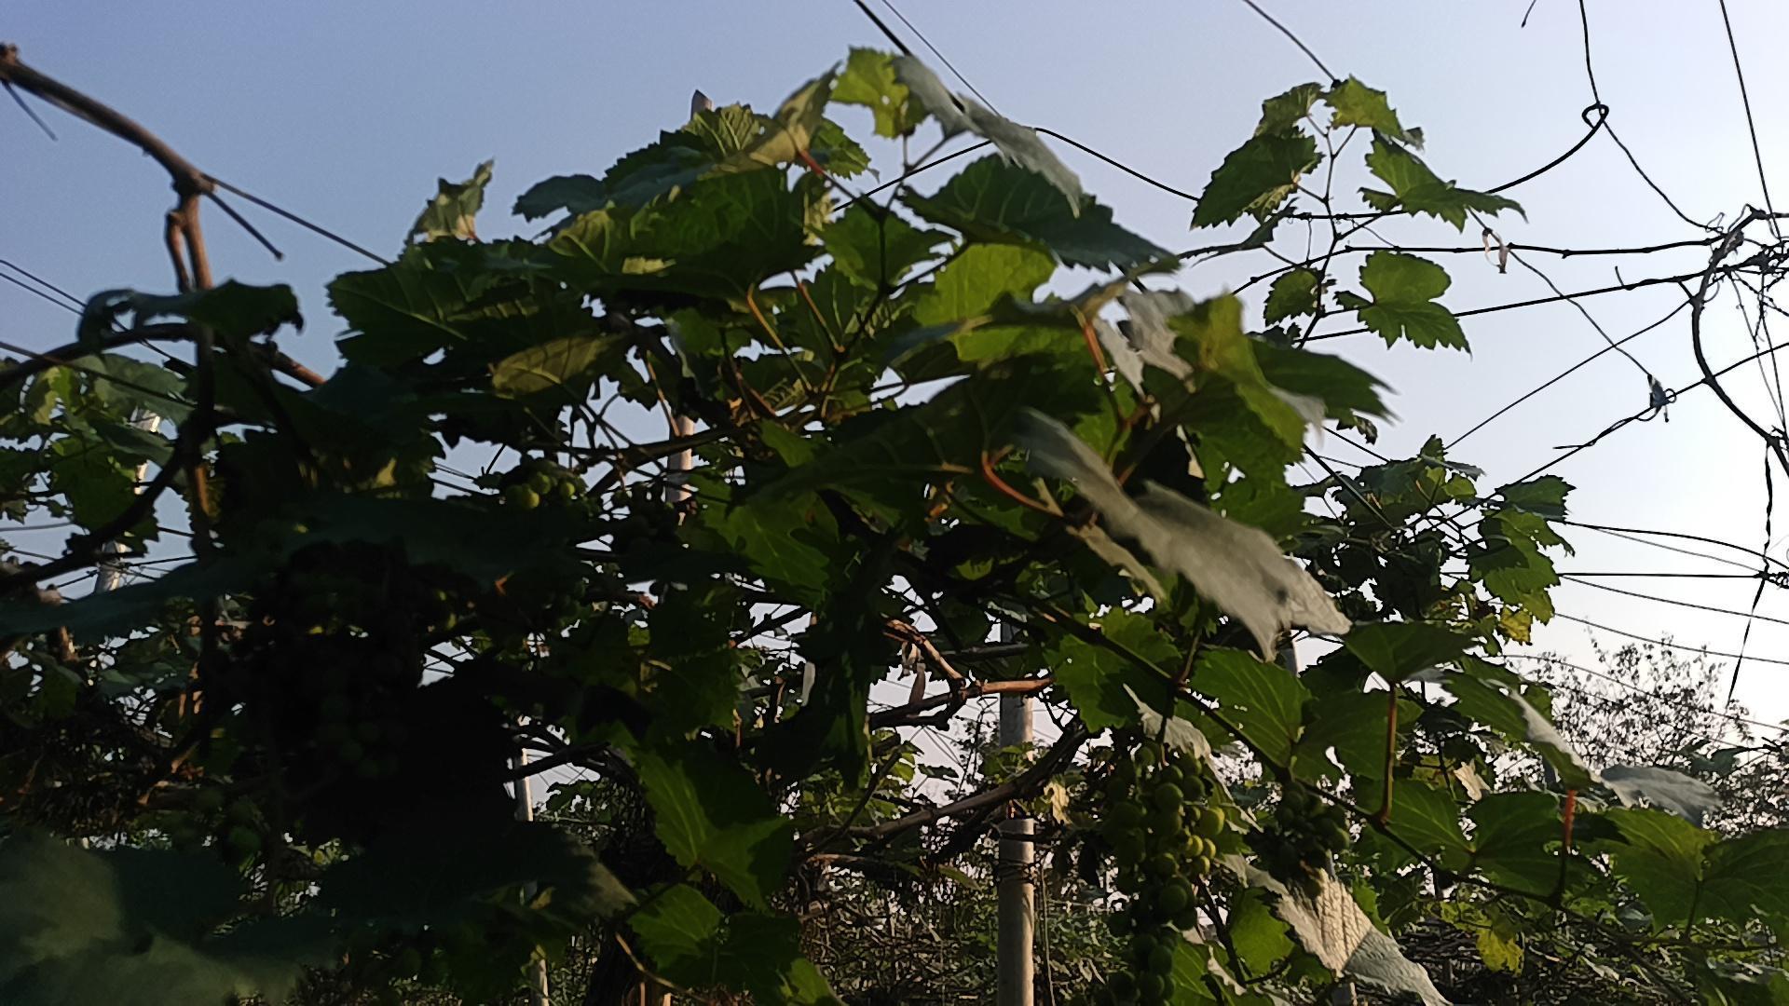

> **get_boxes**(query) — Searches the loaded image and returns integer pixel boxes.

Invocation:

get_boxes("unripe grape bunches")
[1100,739,1226,1005]
[506,462,580,507]
[1246,782,1347,886]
